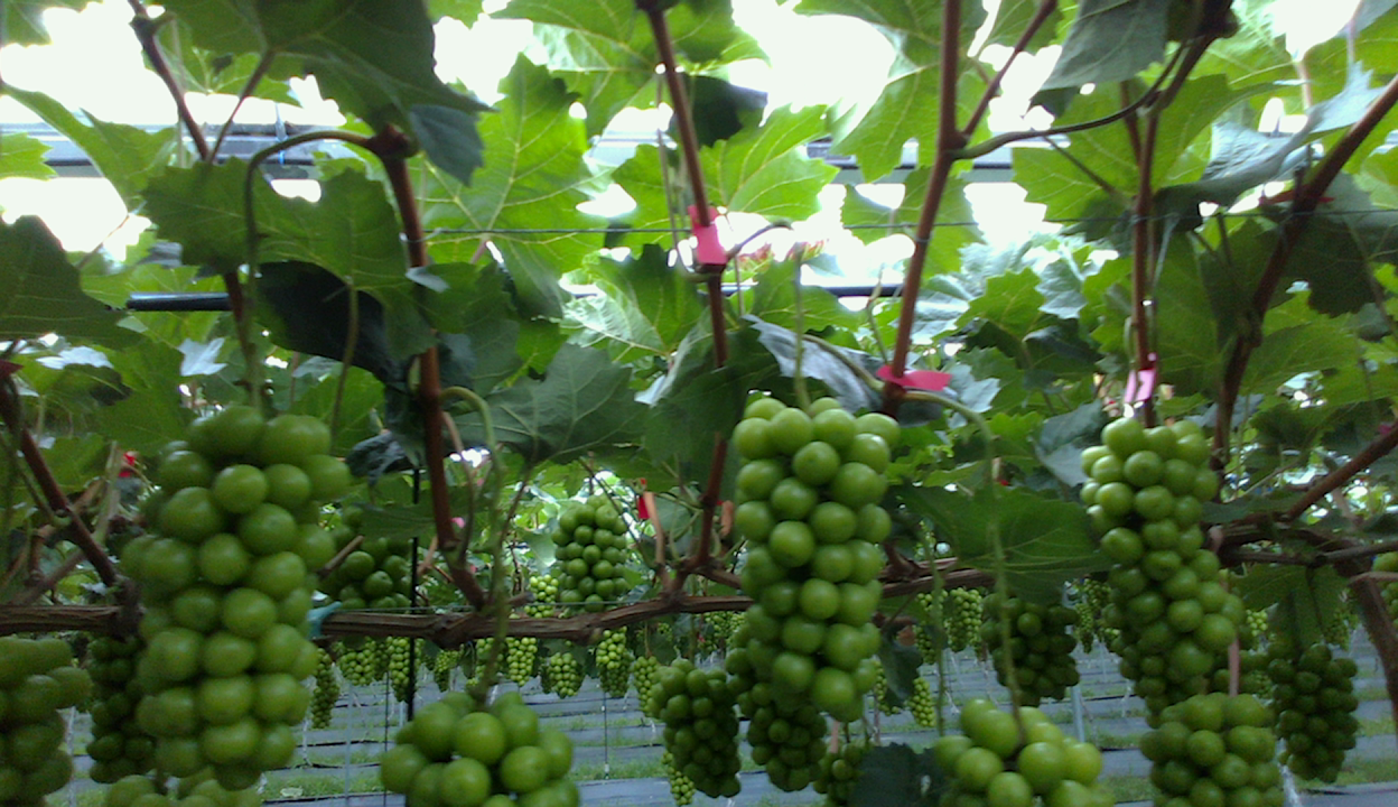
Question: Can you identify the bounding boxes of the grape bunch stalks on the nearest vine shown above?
[902,390,1028,743]
[728,220,814,418]
[442,387,511,711]
[242,130,373,410]
[1122,317,1143,420]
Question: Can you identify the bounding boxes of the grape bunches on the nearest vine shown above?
[379,690,579,806]
[731,398,901,723]
[1139,693,1286,806]
[120,405,352,794]
[931,699,1117,805]
[1079,417,1247,676]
